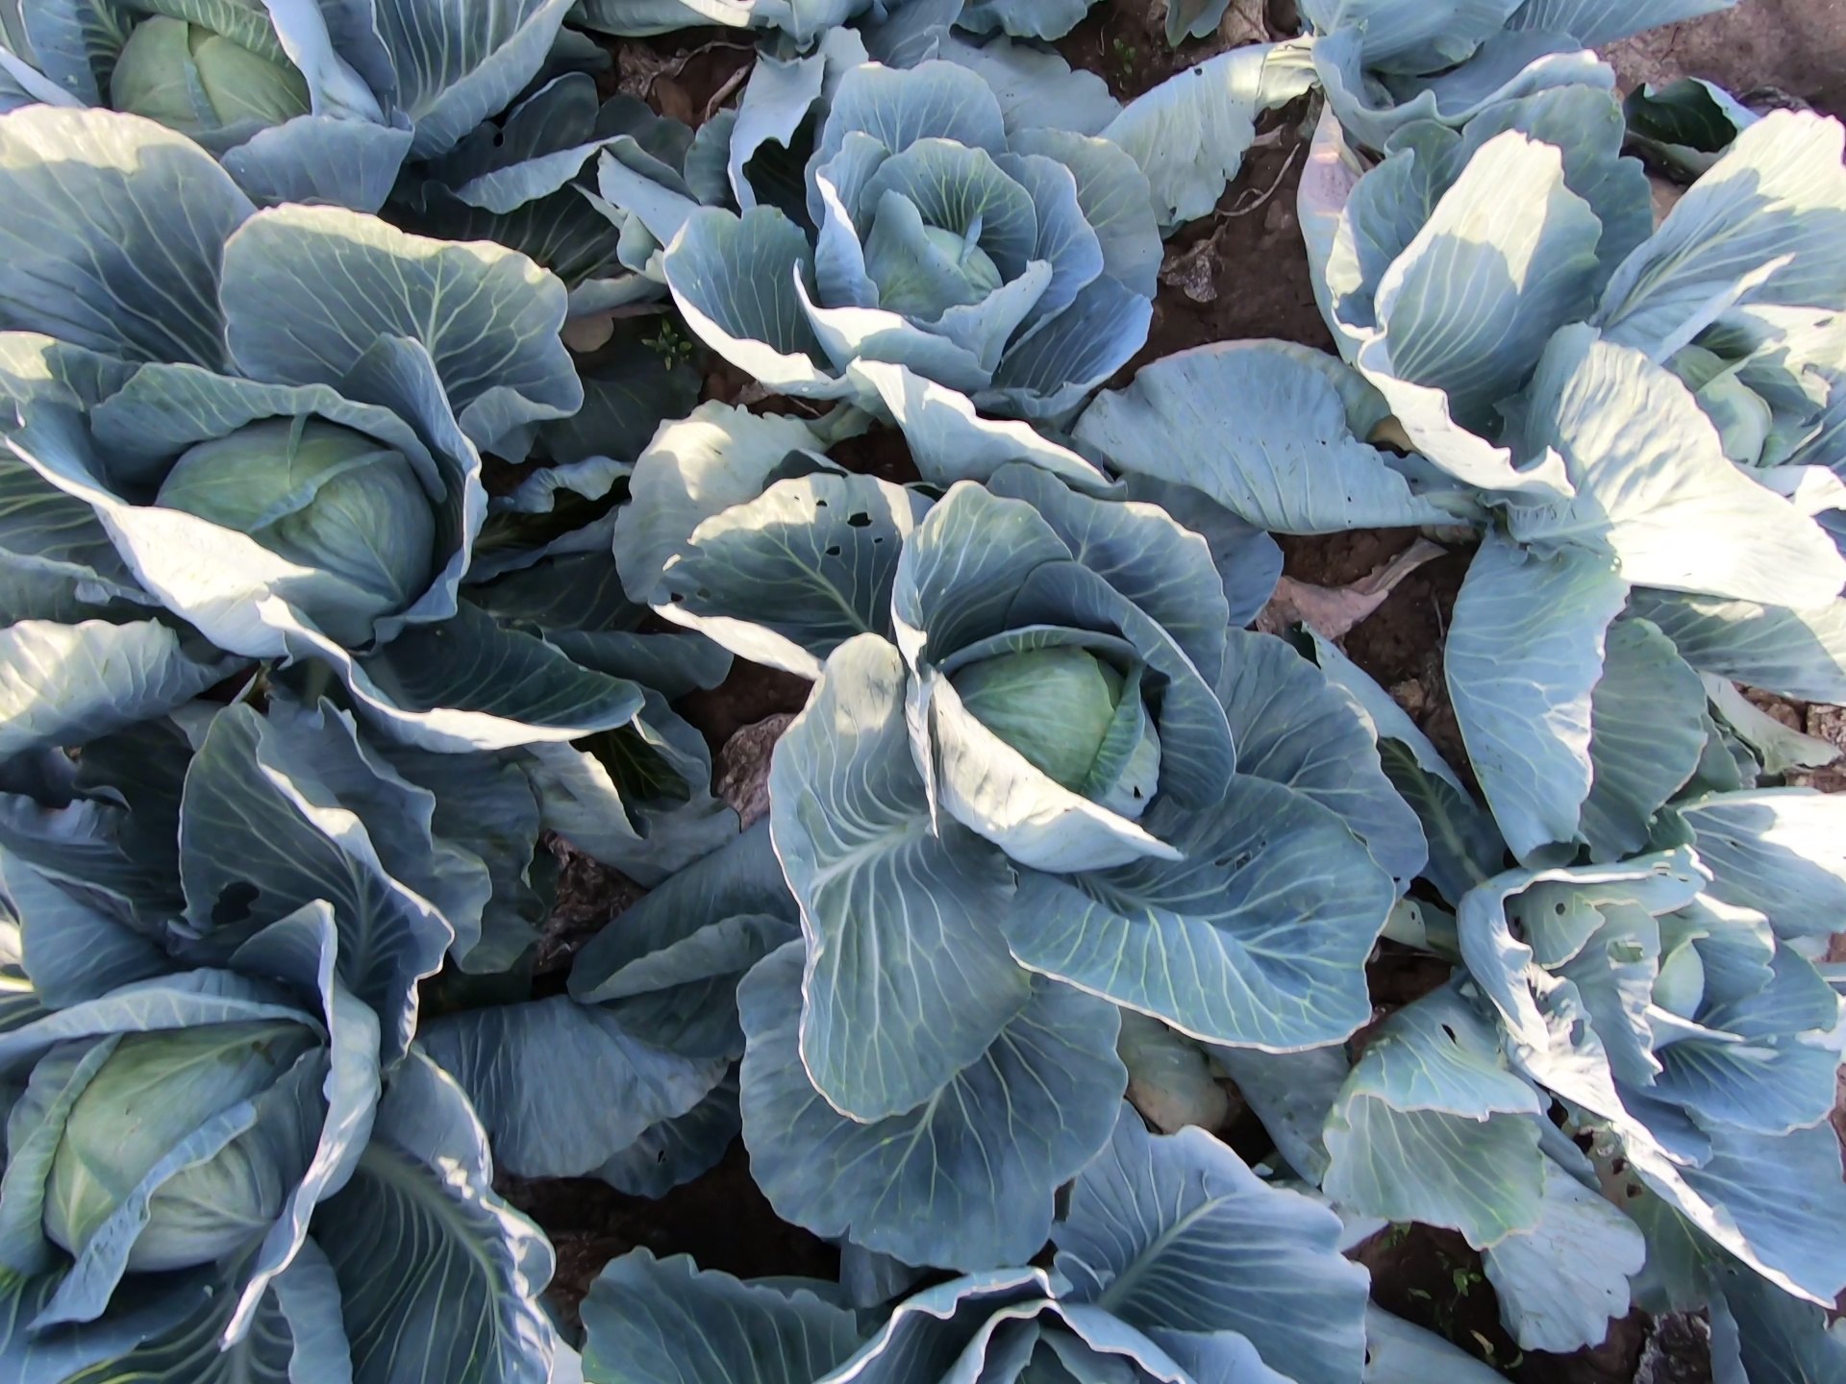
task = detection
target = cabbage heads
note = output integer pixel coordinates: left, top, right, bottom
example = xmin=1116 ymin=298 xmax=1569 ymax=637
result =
xmin=941 ymin=643 xmax=1160 ymax=845
xmin=152 ymin=413 xmax=437 ymax=638
xmin=1594 ymin=342 xmax=1773 ymax=512
xmin=867 ymin=225 xmax=1007 ymax=346
xmin=5 ymin=981 xmax=337 ymax=1258
xmin=1573 ymin=907 xmax=1705 ymax=1039
xmin=108 ymin=2 xmax=342 ymax=211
